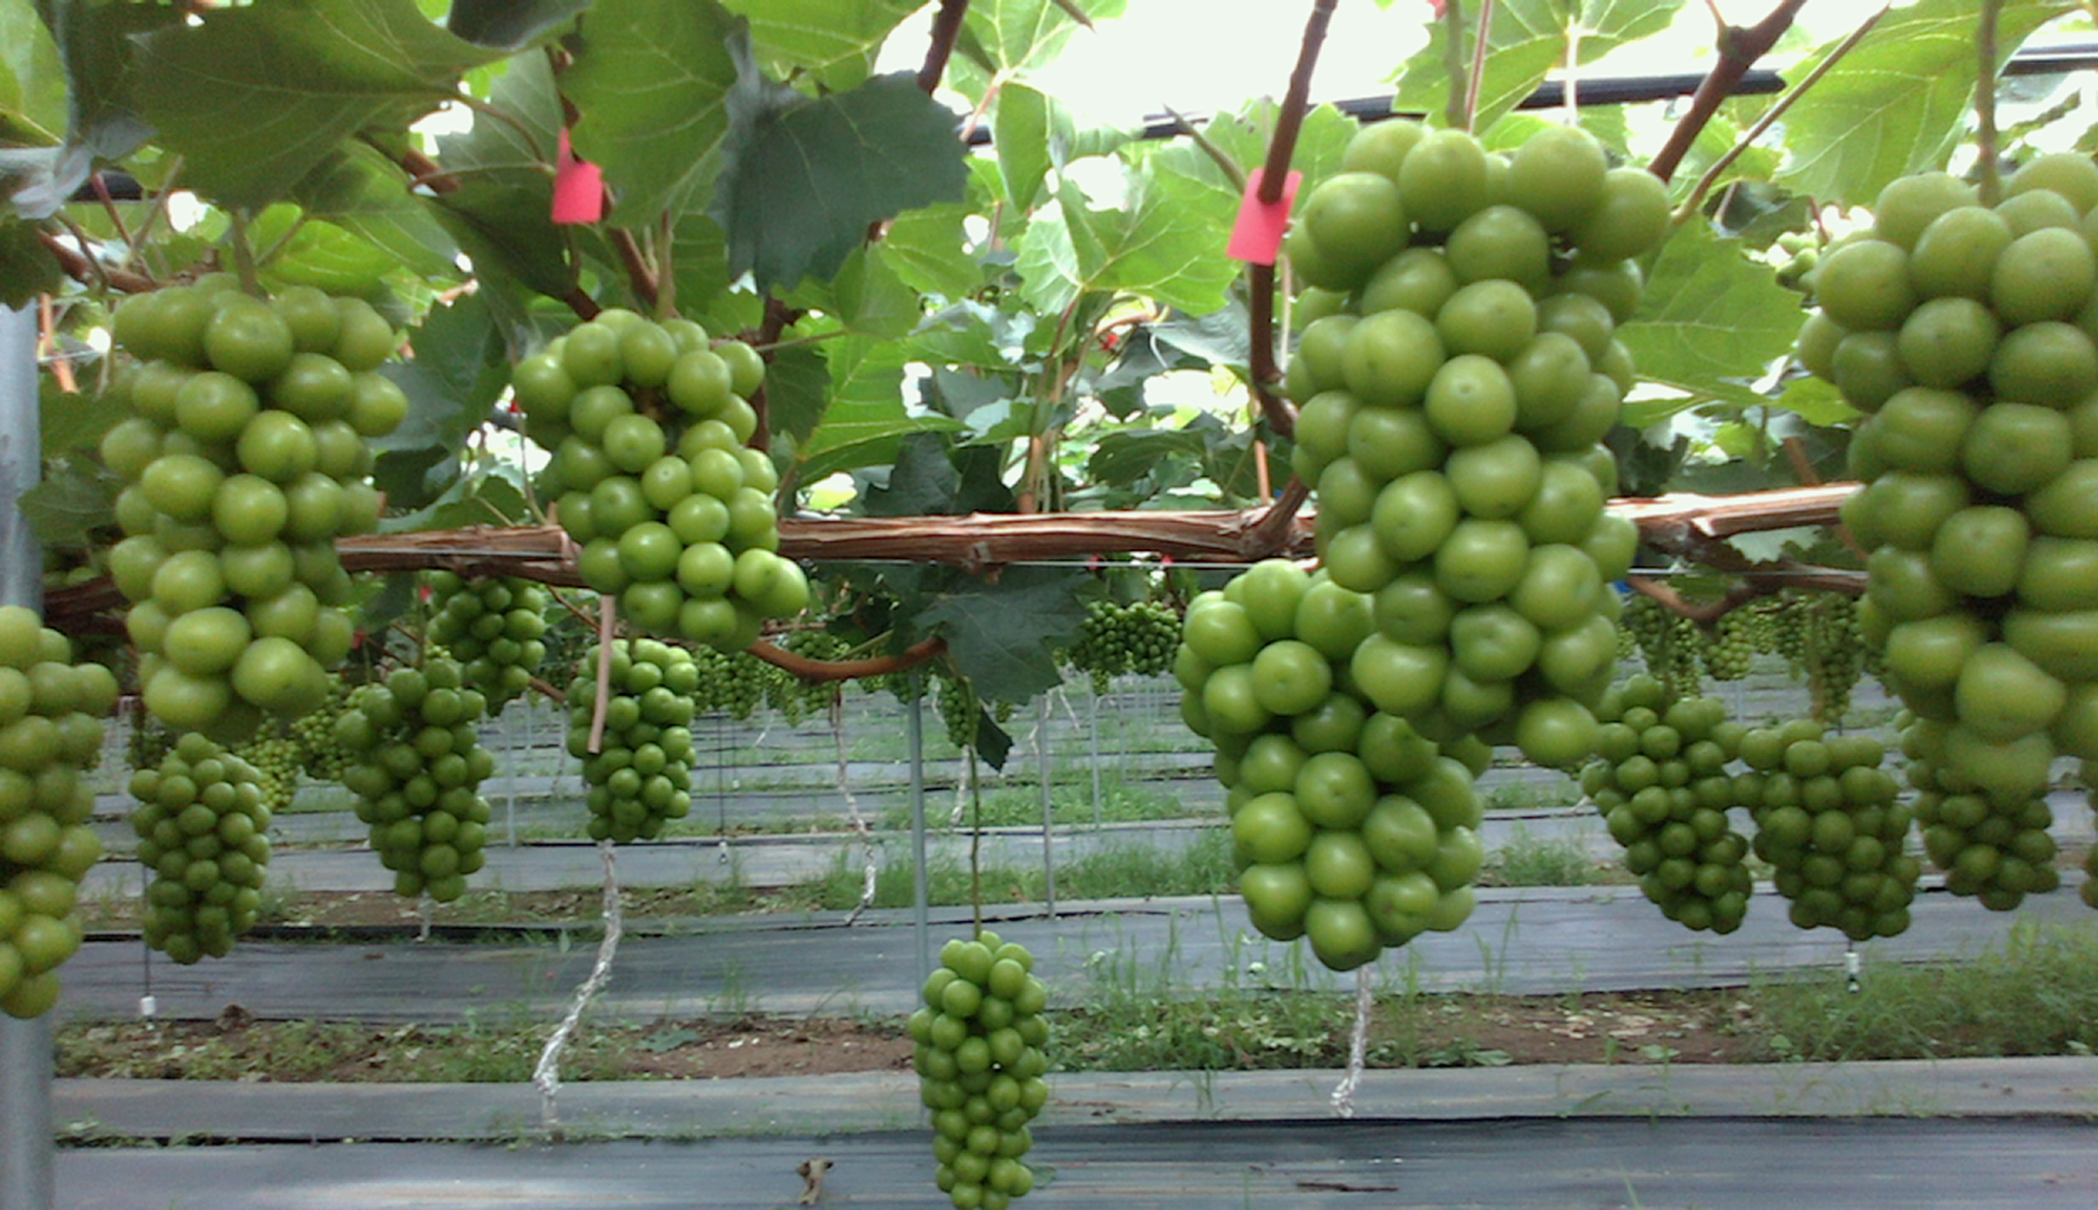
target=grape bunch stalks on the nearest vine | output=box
[230,212,259,304]
[652,212,676,321]
[1446,2,1466,131]
[1977,0,2004,207]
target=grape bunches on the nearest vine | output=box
[0,605,116,1017]
[1173,560,1493,973]
[1283,123,1669,770]
[511,308,810,657]
[1795,155,2096,793]
[103,269,410,748]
